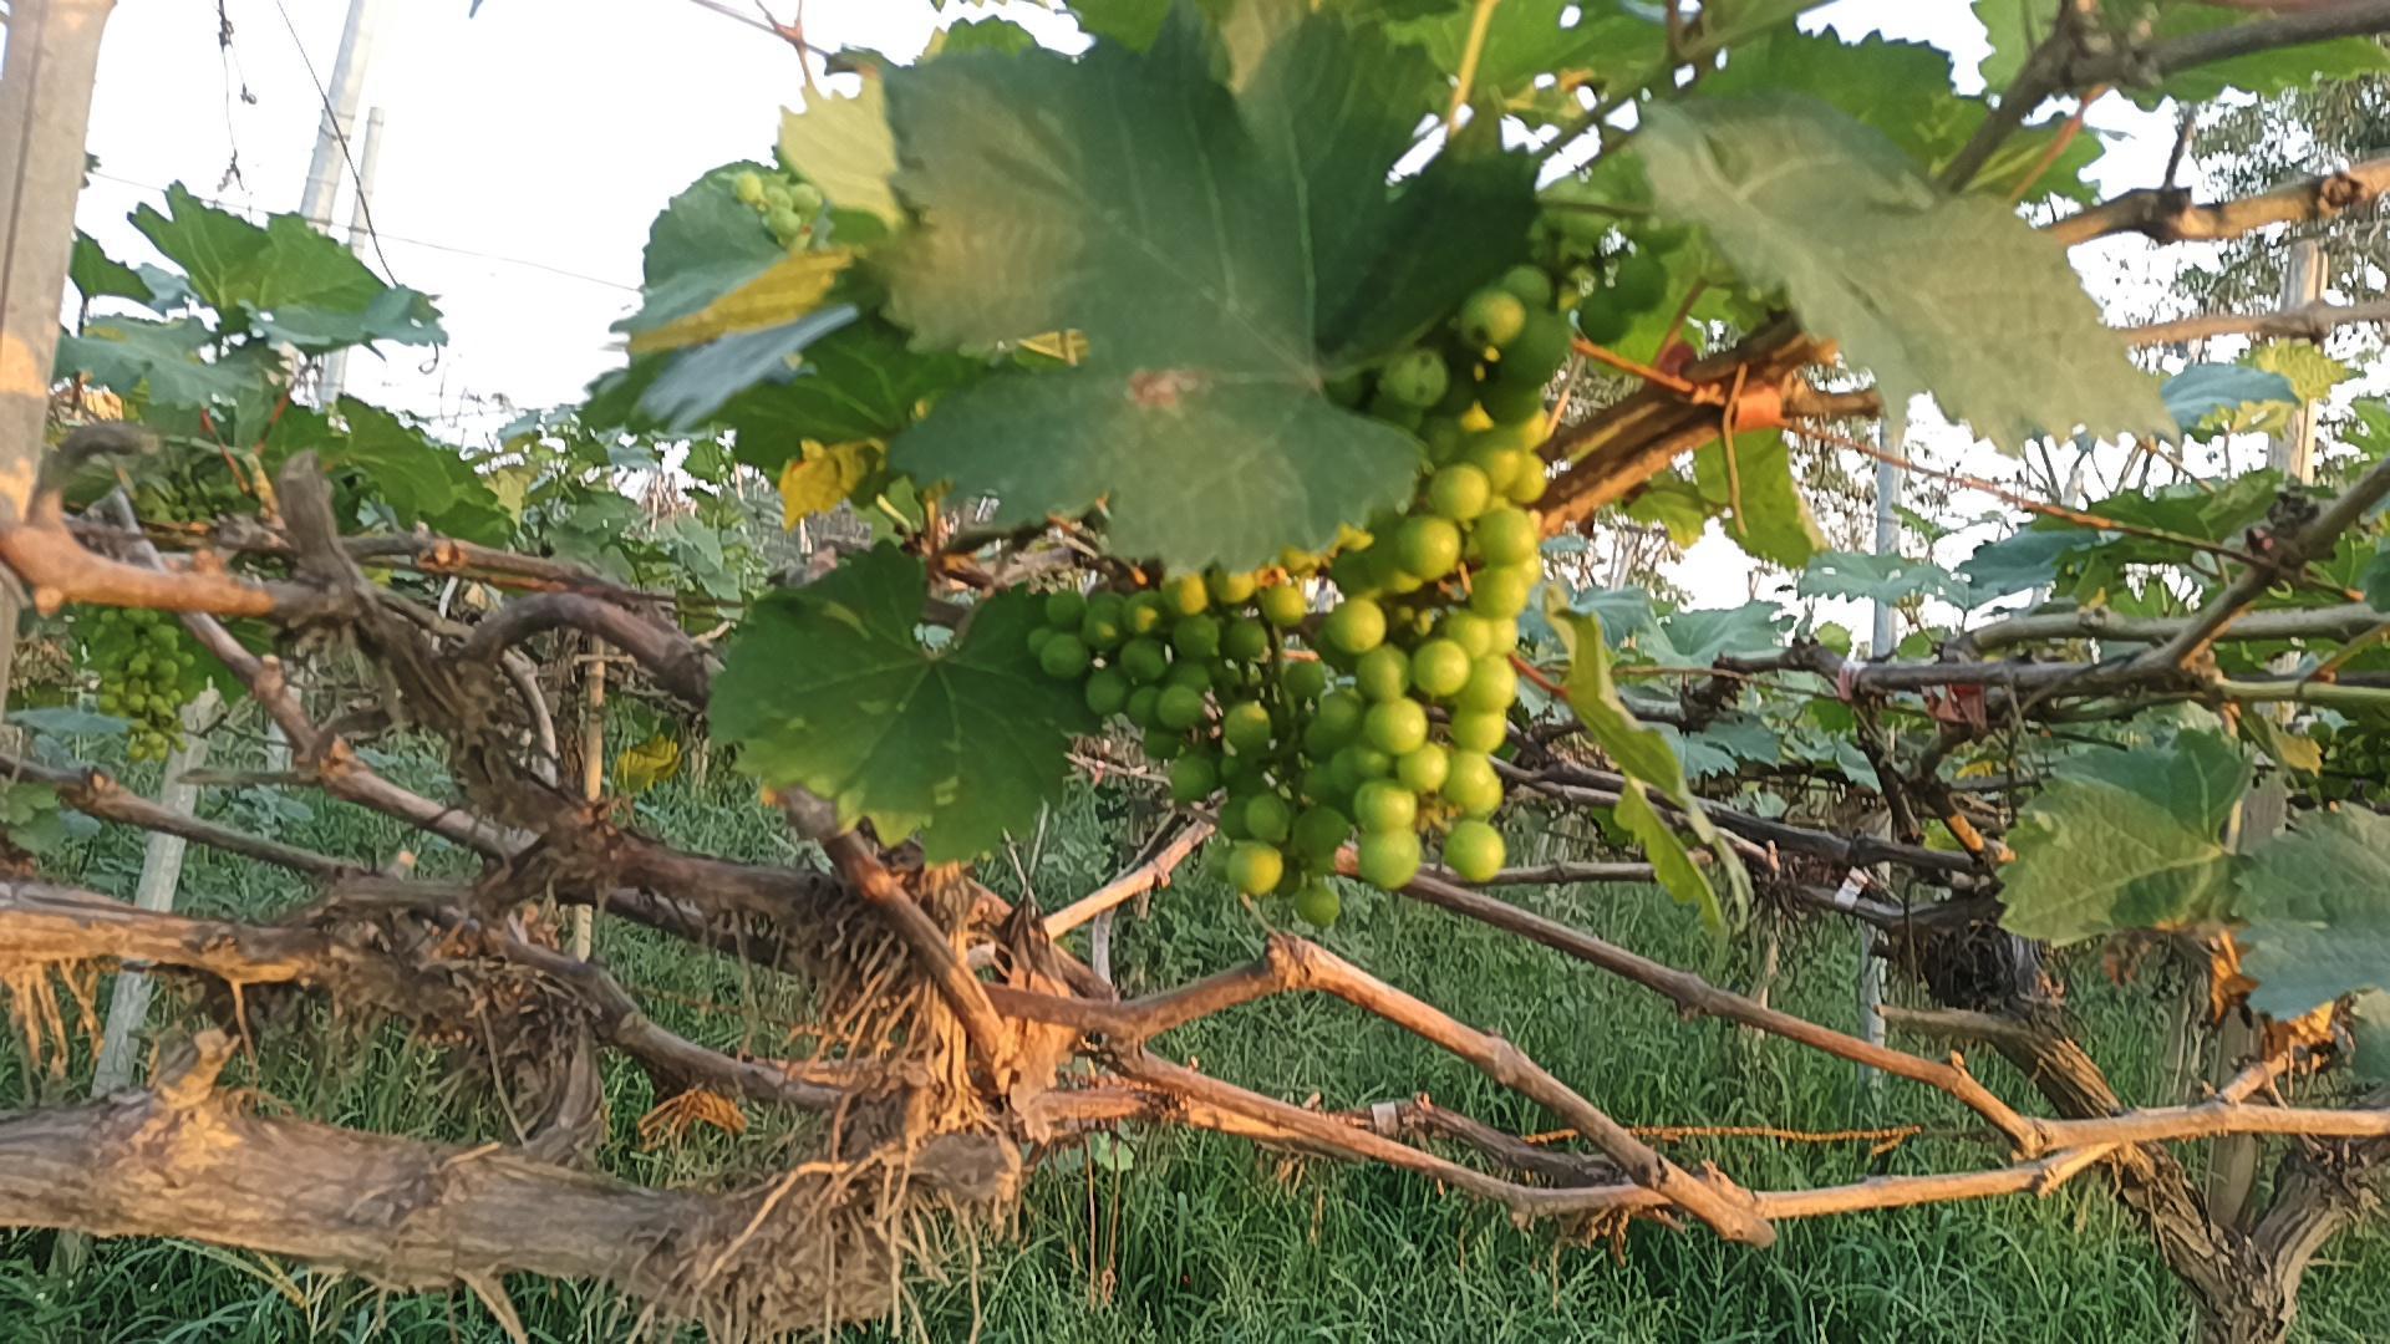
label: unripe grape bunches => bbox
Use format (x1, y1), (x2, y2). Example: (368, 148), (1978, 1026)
(1312, 183), (1692, 886)
(75, 610), (198, 762)
(1027, 528), (1374, 928)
